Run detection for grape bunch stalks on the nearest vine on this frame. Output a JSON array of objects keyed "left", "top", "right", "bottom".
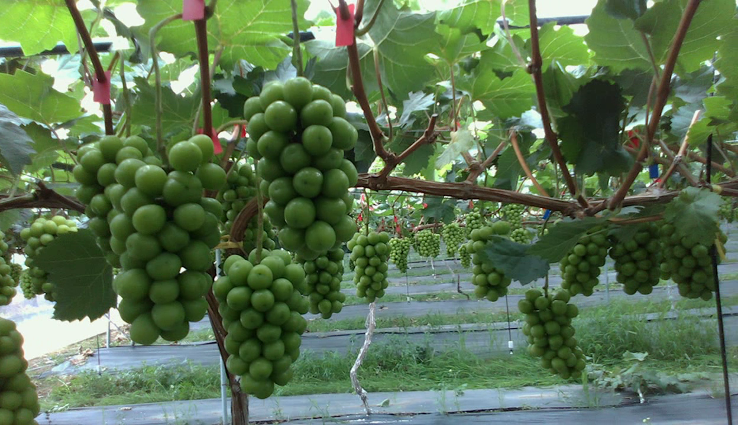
[
  {"left": 149, "top": 14, "right": 182, "bottom": 173},
  {"left": 254, "top": 159, "right": 264, "bottom": 264},
  {"left": 109, "top": 50, "right": 131, "bottom": 137},
  {"left": 292, "top": 0, "right": 304, "bottom": 77}
]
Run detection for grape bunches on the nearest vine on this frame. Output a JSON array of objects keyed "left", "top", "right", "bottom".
[
  {"left": 109, "top": 135, "right": 226, "bottom": 345},
  {"left": 73, "top": 135, "right": 161, "bottom": 268},
  {"left": 213, "top": 249, "right": 310, "bottom": 400},
  {"left": 0, "top": 318, "right": 41, "bottom": 424},
  {"left": 244, "top": 77, "right": 358, "bottom": 262}
]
